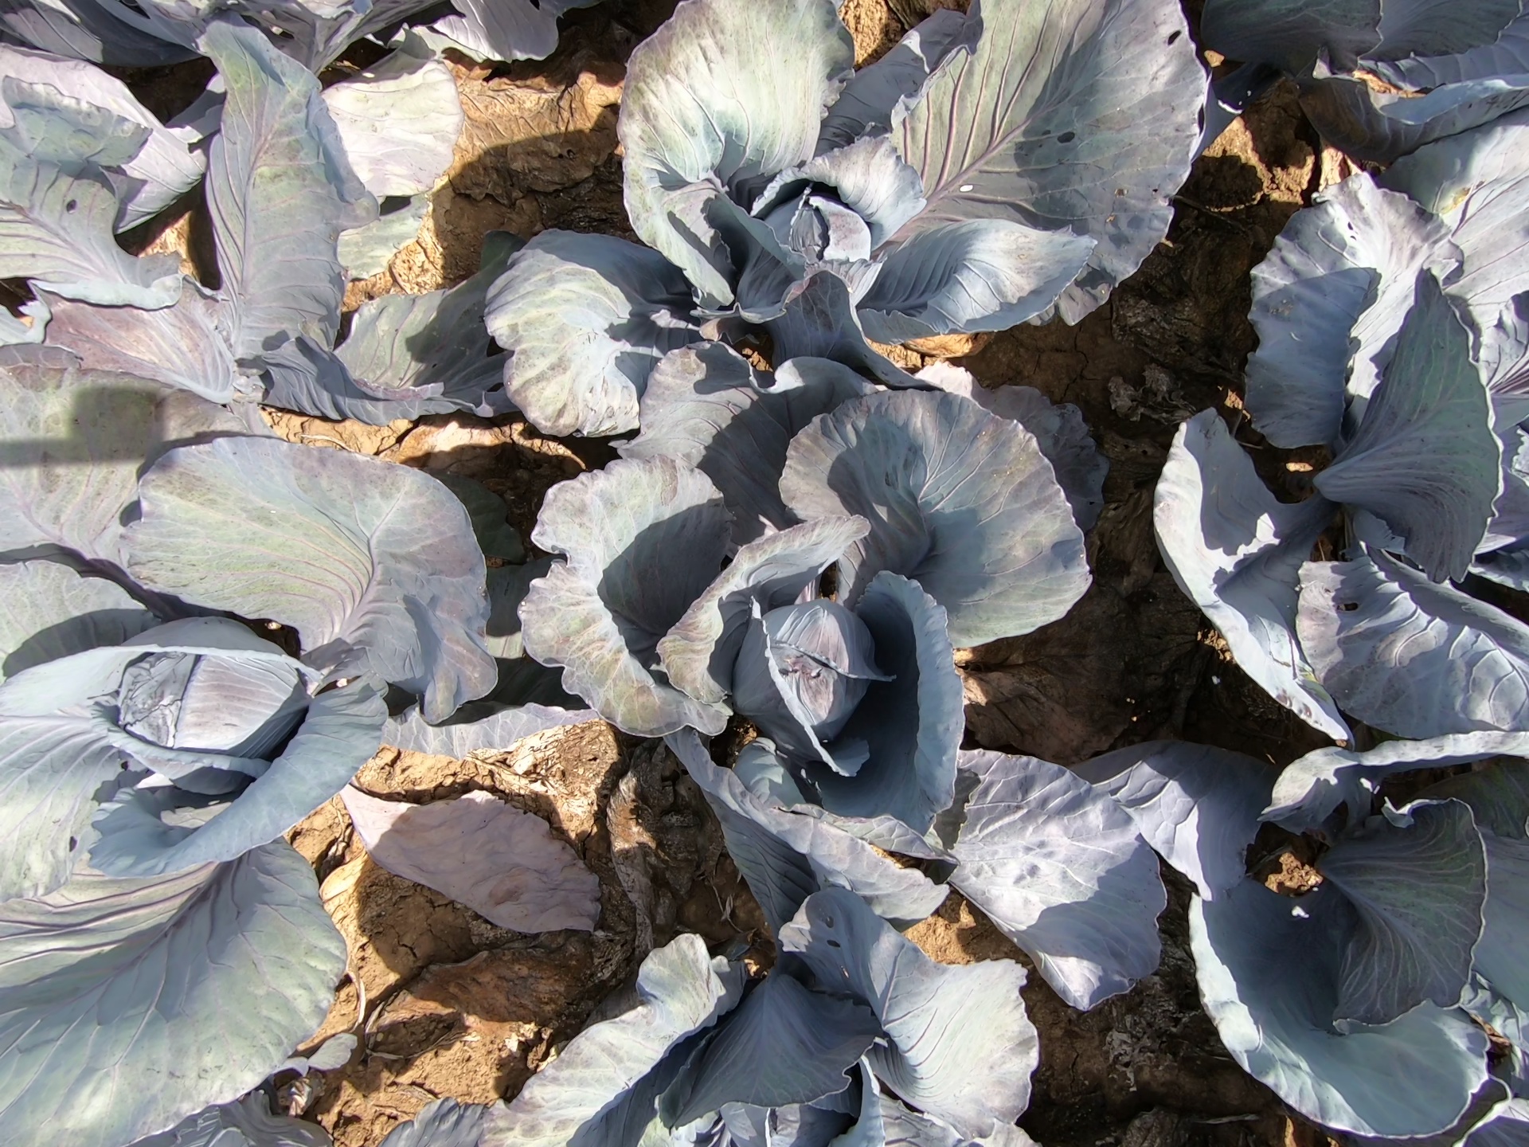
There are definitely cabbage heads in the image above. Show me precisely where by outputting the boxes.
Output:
[1404,402,1527,557]
[742,601,878,742]
[759,194,874,300]
[2,48,164,241]
[109,628,298,786]
[714,1001,851,1145]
